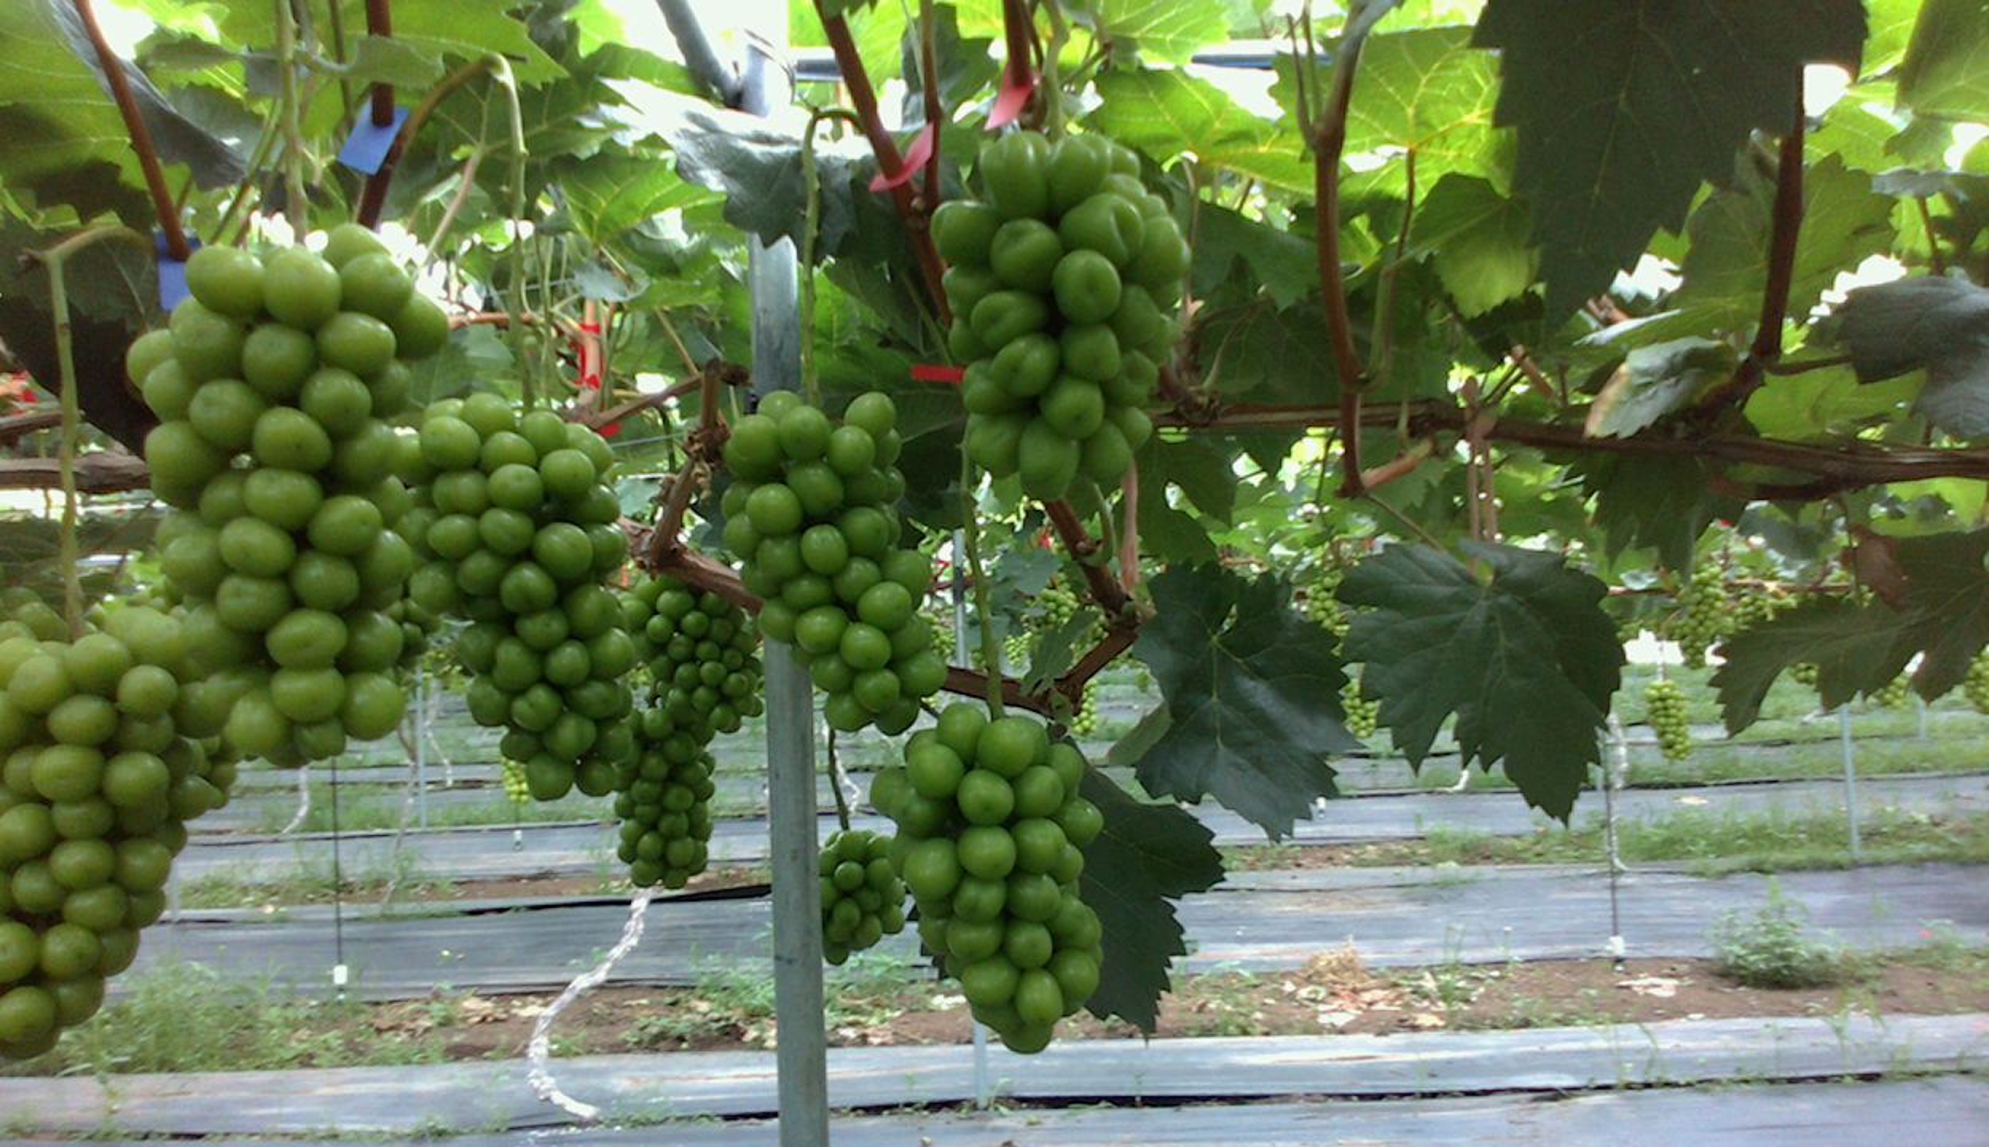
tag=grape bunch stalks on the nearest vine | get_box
[1041,3,1069,140]
[802,108,867,408]
[400,49,537,413]
[274,10,309,249]
[961,425,1004,718]
[43,223,155,640]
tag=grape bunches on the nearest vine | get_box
[931,132,1191,502]
[127,221,449,768]
[397,393,633,800]
[867,703,1103,1055]
[720,390,951,734]
[0,588,226,1061]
